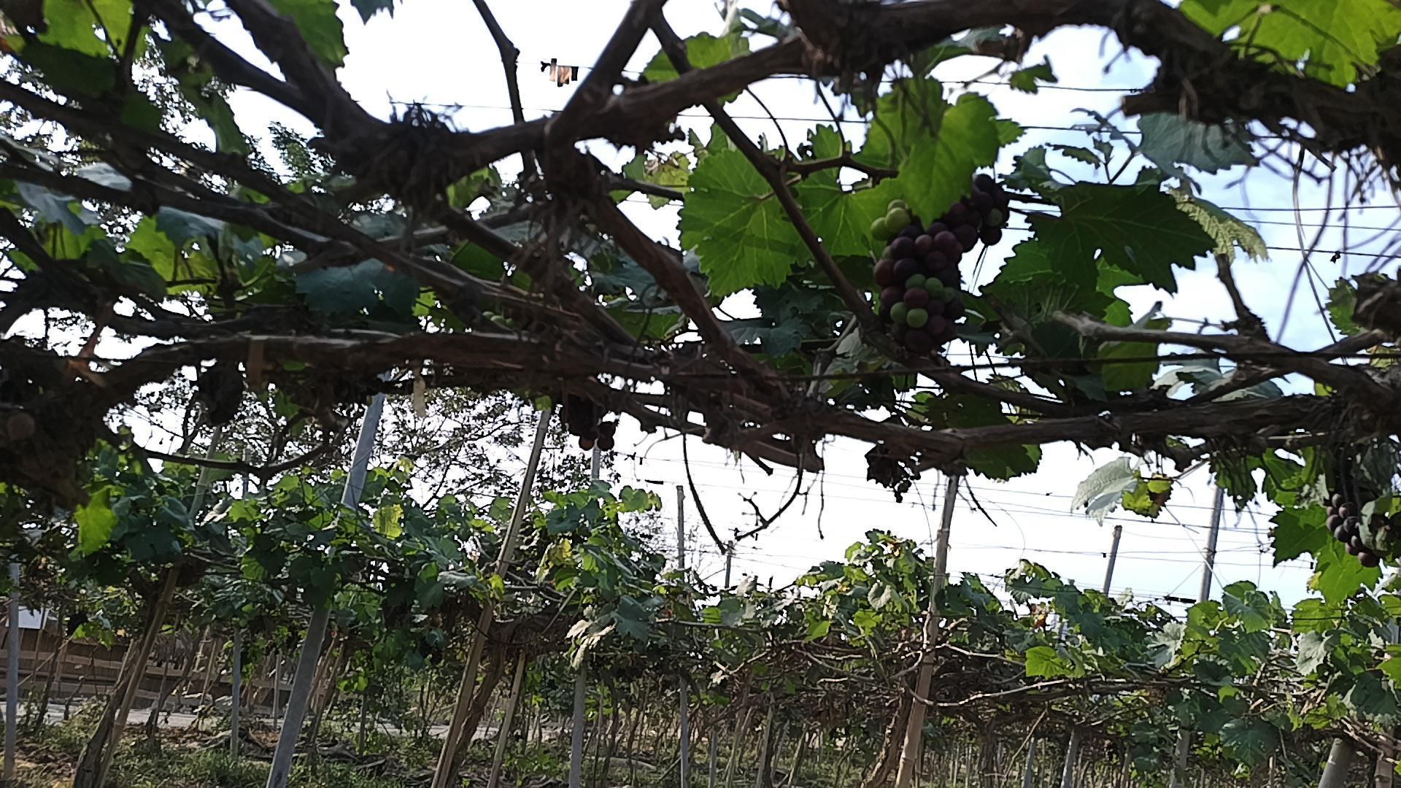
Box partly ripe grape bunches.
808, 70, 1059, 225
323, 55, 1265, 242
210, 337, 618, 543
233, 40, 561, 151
869, 175, 1008, 353
560, 394, 617, 452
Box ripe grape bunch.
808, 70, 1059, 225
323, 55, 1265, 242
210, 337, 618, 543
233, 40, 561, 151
1325, 441, 1400, 566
